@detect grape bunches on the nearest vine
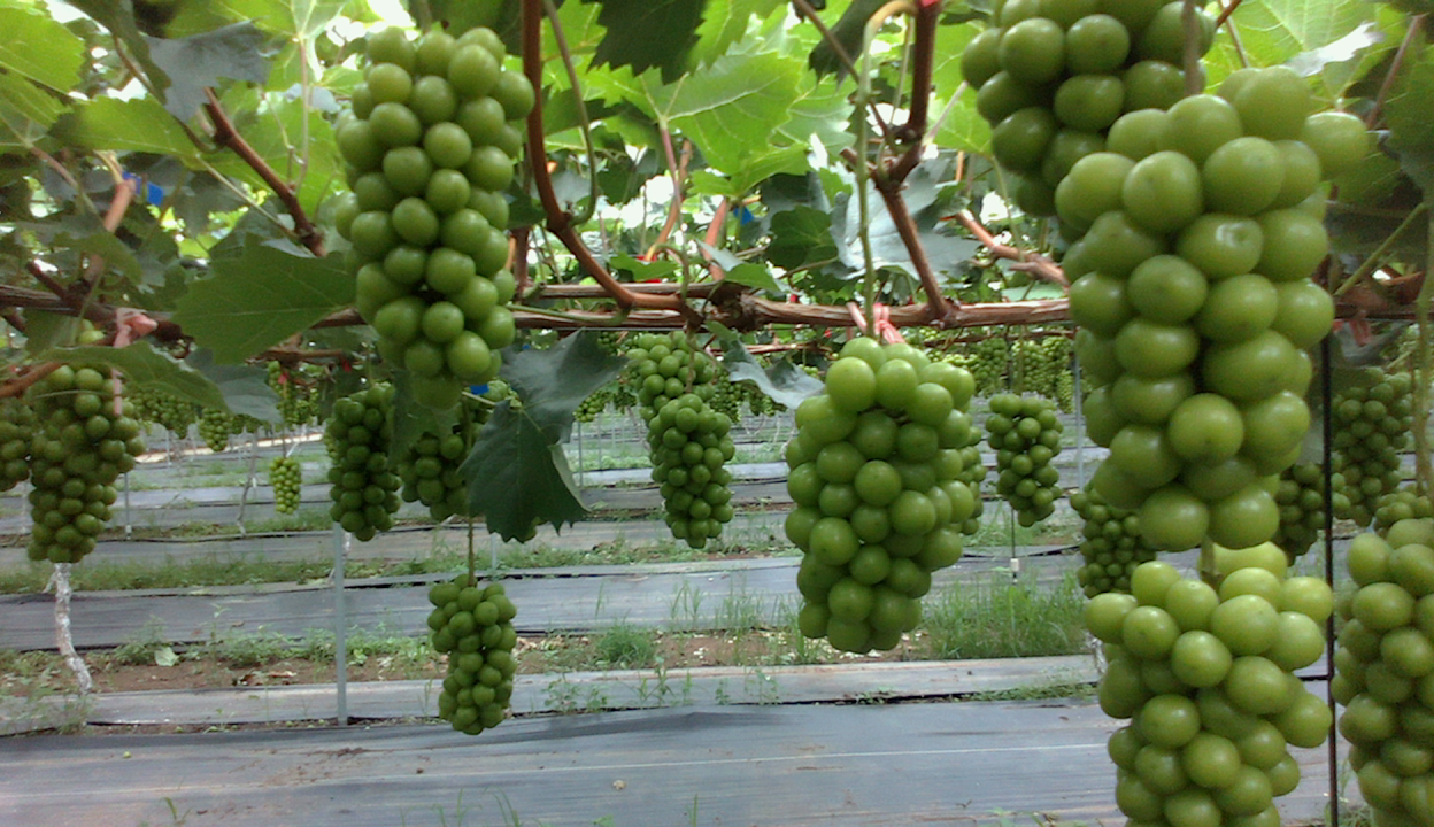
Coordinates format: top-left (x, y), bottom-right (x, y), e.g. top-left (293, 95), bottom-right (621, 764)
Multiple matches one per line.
top-left (959, 0), bottom-right (1215, 219)
top-left (333, 28), bottom-right (537, 412)
top-left (1085, 541), bottom-right (1334, 826)
top-left (787, 335), bottom-right (974, 655)
top-left (1054, 65), bottom-right (1370, 551)
top-left (1331, 517), bottom-right (1432, 826)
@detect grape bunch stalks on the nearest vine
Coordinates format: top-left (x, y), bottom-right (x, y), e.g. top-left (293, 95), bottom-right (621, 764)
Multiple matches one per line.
top-left (1414, 223), bottom-right (1433, 492)
top-left (1184, 1), bottom-right (1201, 98)
top-left (415, 0), bottom-right (434, 38)
top-left (857, 1), bottom-right (919, 338)
top-left (1201, 541), bottom-right (1216, 585)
